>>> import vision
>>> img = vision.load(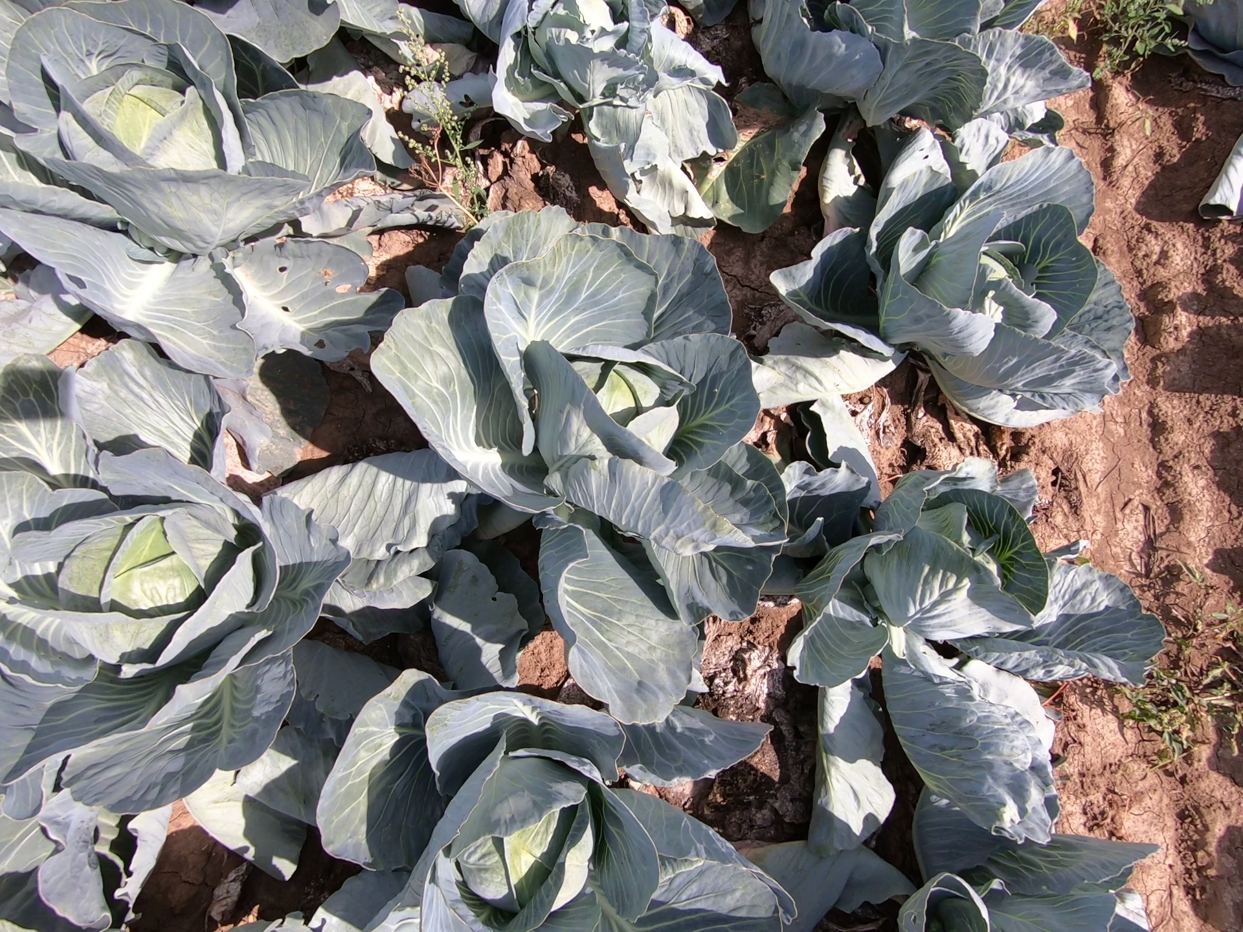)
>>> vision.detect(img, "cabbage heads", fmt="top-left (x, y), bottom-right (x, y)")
top-left (536, 1), bottom-right (614, 75)
top-left (451, 759), bottom-right (594, 922)
top-left (62, 80), bottom-right (234, 208)
top-left (877, 523), bottom-right (1002, 636)
top-left (536, 358), bottom-right (674, 489)
top-left (930, 249), bottom-right (1014, 337)
top-left (54, 506), bottom-right (241, 663)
